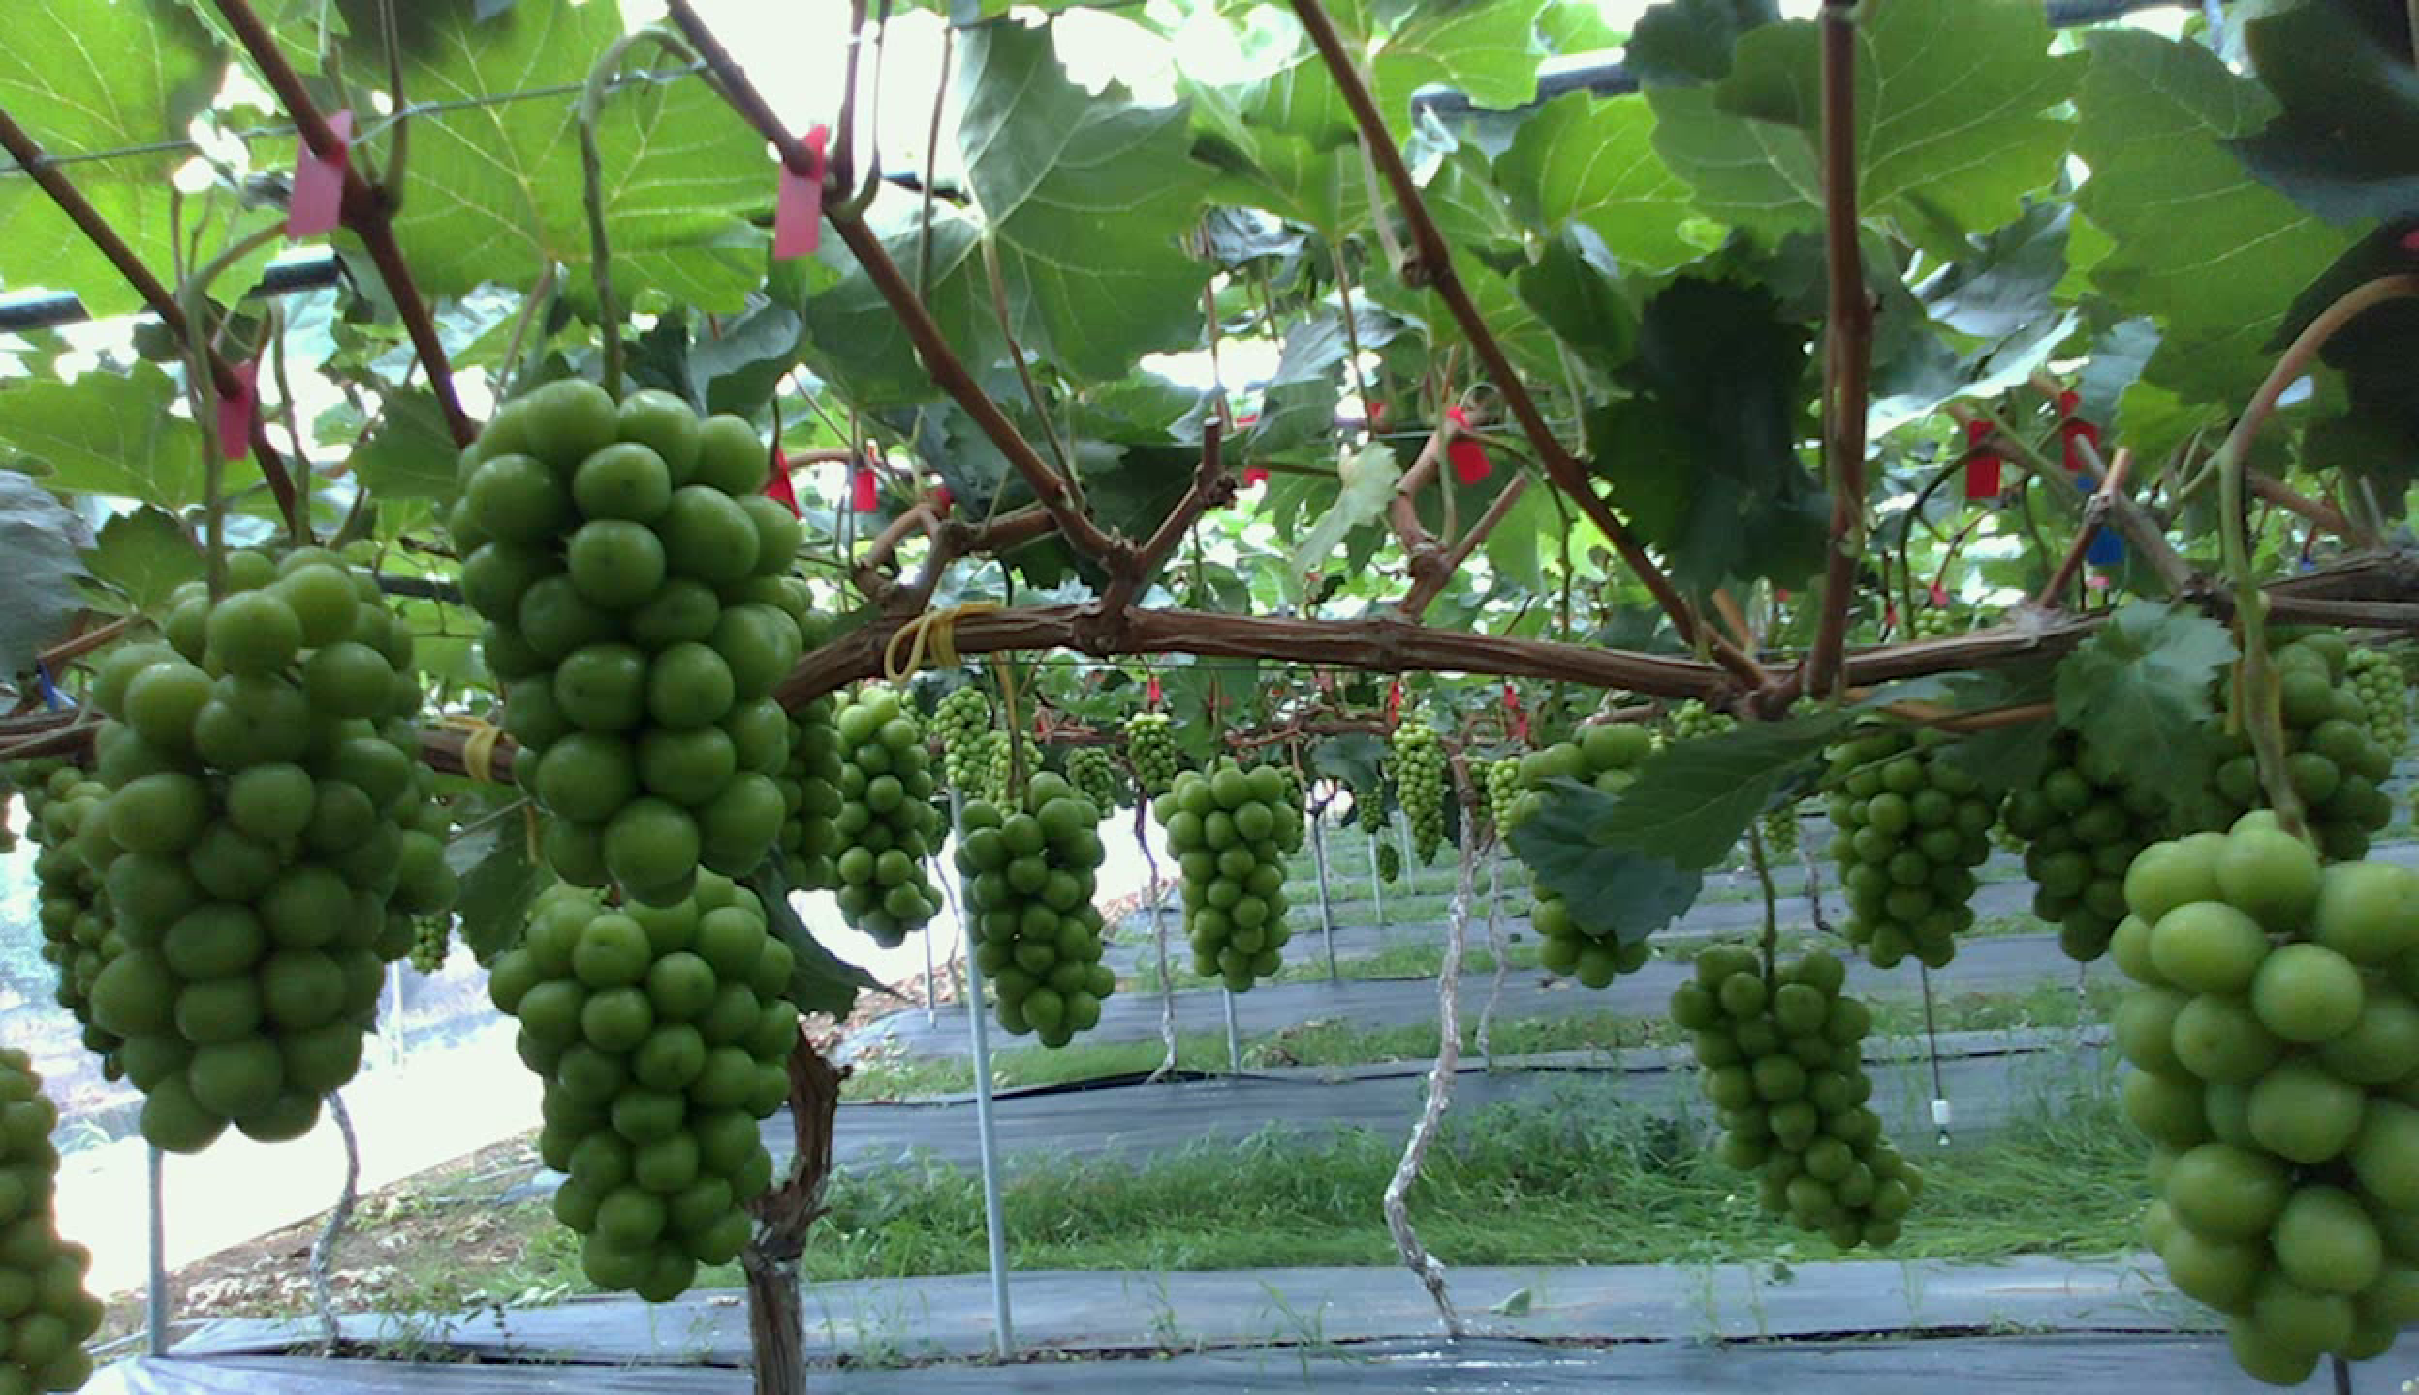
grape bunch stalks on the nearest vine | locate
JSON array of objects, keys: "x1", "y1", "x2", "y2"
[
  {"x1": 2188, "y1": 275, "x2": 2413, "y2": 835},
  {"x1": 580, "y1": 25, "x2": 698, "y2": 395},
  {"x1": 611, "y1": 891, "x2": 618, "y2": 907},
  {"x1": 182, "y1": 223, "x2": 283, "y2": 599}
]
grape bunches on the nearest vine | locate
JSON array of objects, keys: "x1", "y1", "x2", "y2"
[
  {"x1": 76, "y1": 542, "x2": 409, "y2": 1153},
  {"x1": 0, "y1": 1052, "x2": 99, "y2": 1393},
  {"x1": 2109, "y1": 810, "x2": 2417, "y2": 1387},
  {"x1": 450, "y1": 378, "x2": 802, "y2": 907},
  {"x1": 488, "y1": 874, "x2": 797, "y2": 1304}
]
